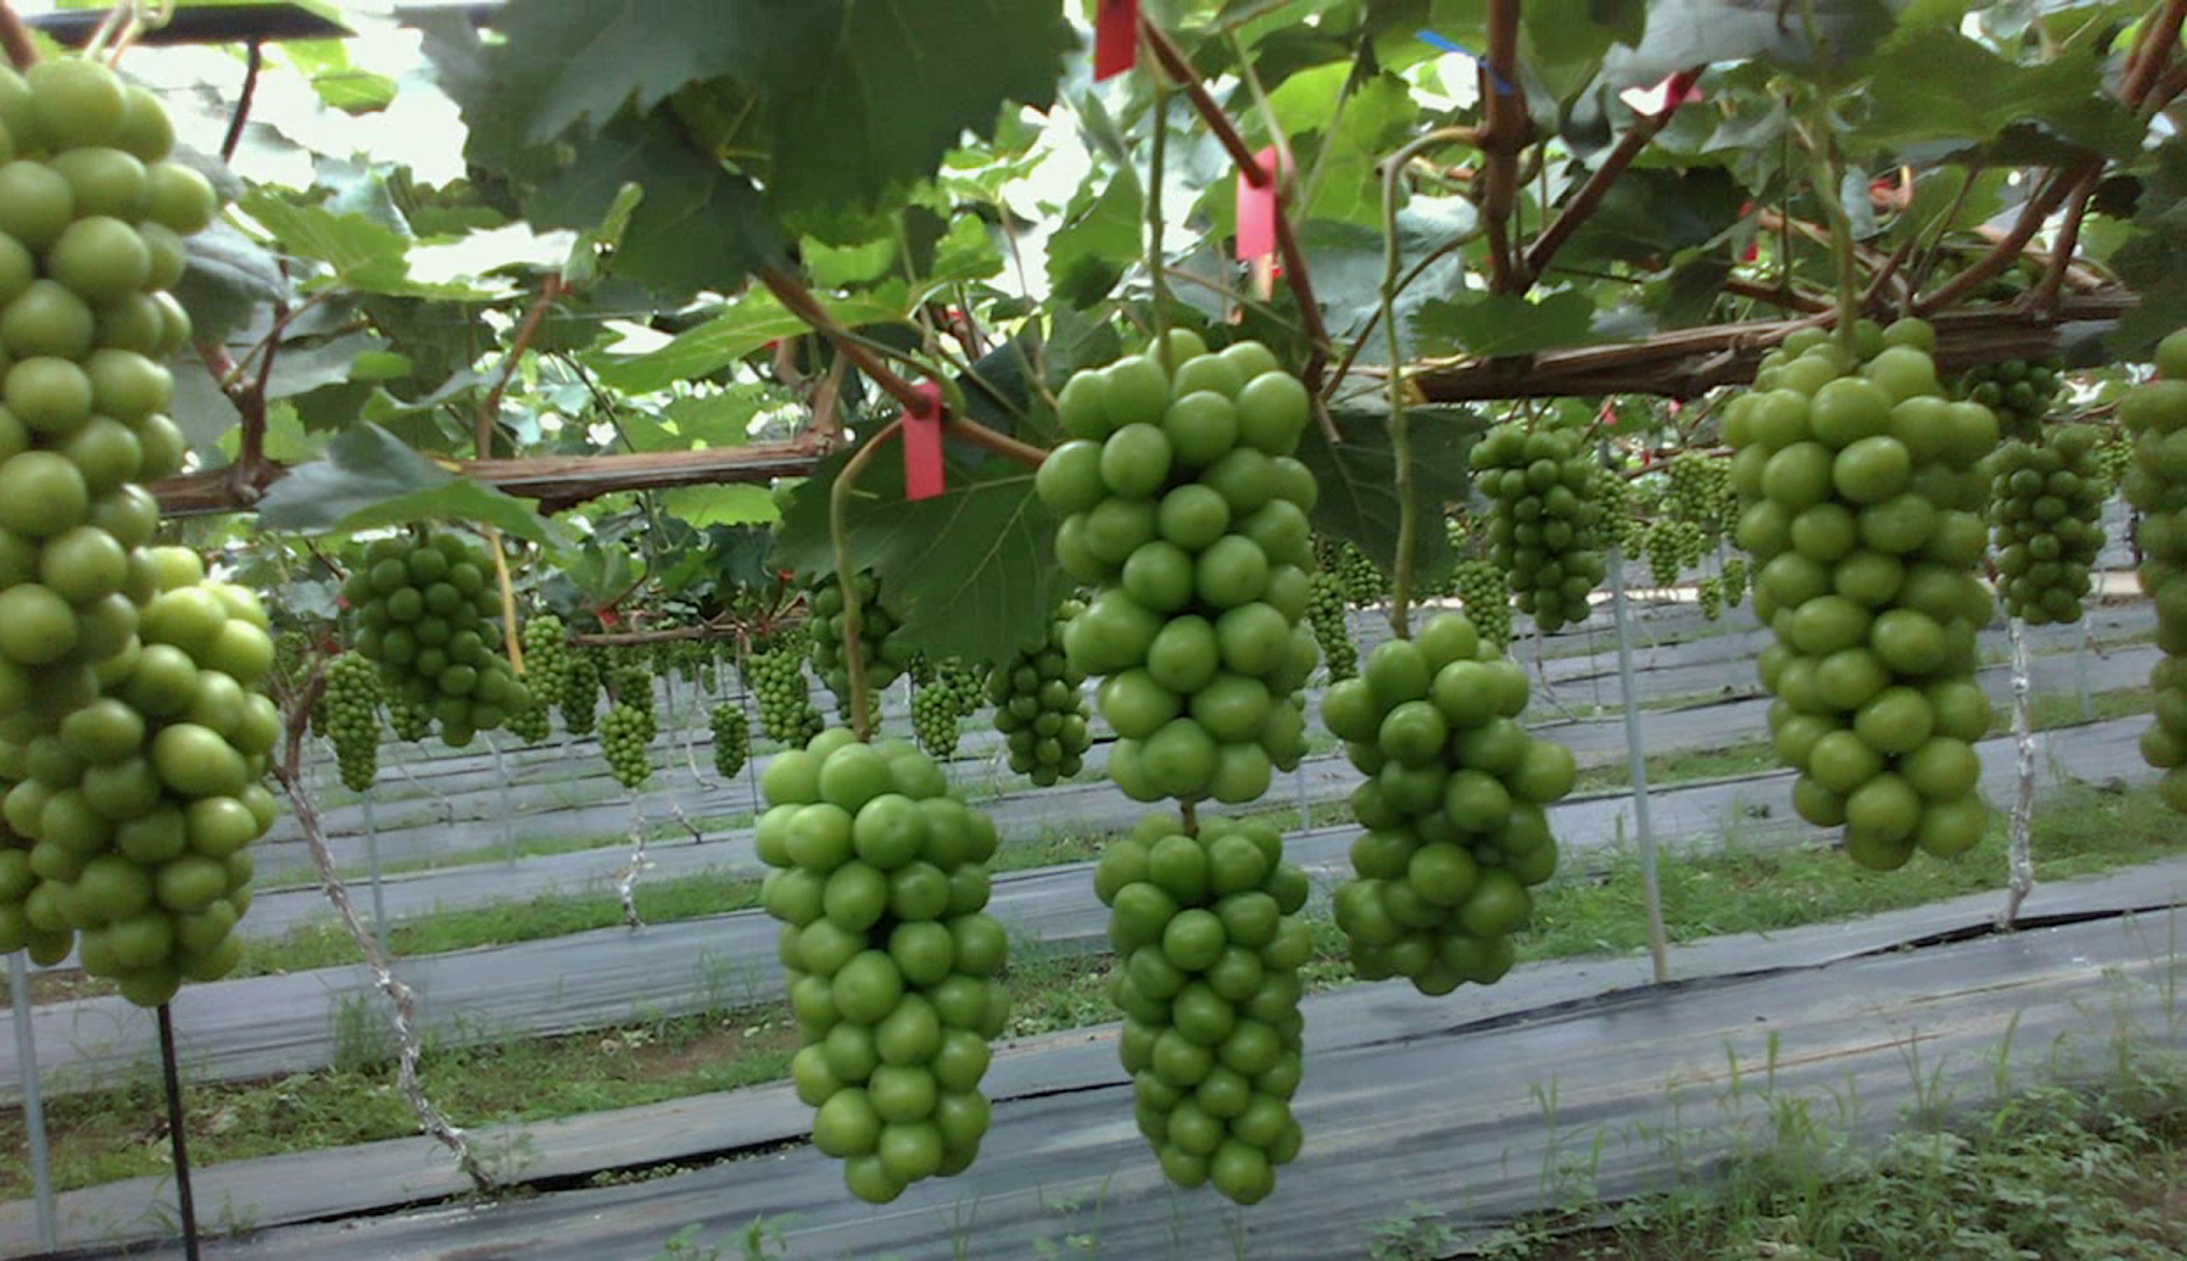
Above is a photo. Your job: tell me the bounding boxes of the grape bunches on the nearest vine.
[0,51,212,743]
[1728,322,1998,872]
[1321,615,1577,995]
[755,727,1006,1203]
[0,543,284,1005]
[1036,328,1321,802]
[1093,814,1311,1201]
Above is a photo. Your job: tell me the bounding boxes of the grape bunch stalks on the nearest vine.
[1821,152,1861,370]
[1185,809,1200,837]
[1144,51,1192,364]
[1381,128,1465,634]
[827,420,901,741]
